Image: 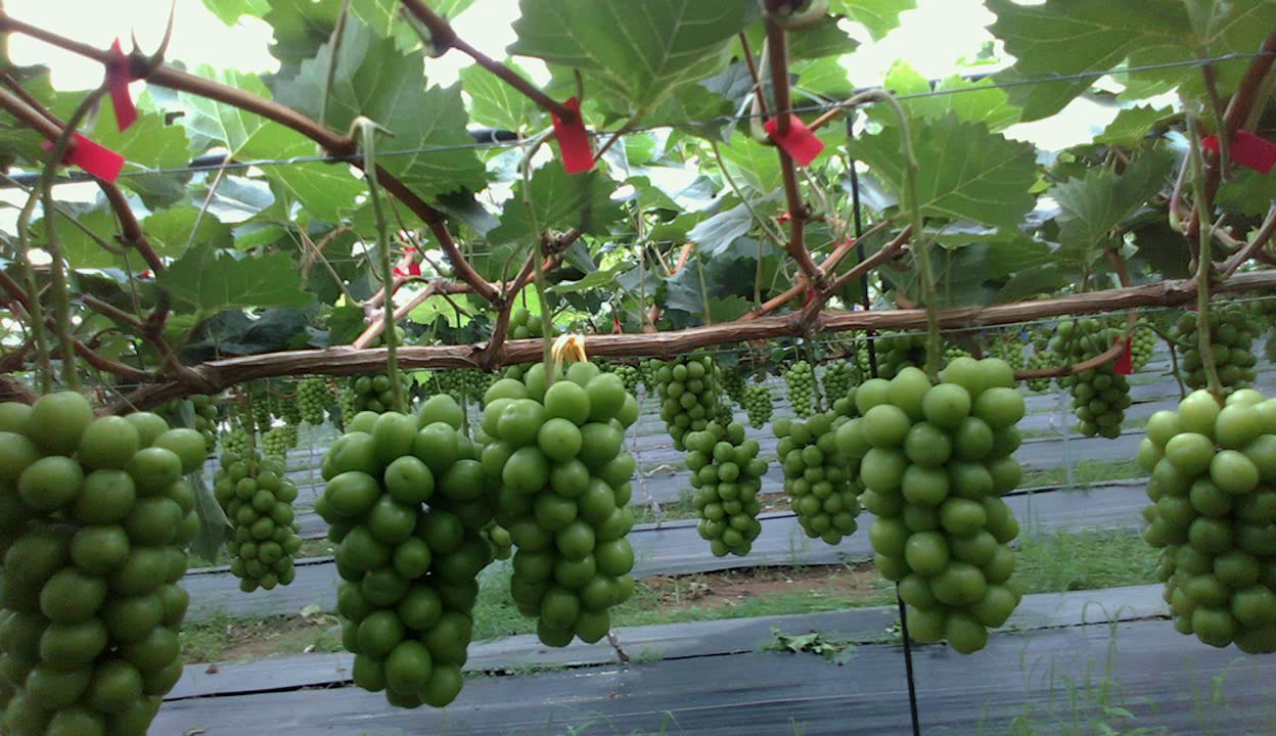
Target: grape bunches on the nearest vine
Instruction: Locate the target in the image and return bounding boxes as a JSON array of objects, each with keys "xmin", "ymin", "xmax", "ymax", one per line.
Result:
[
  {"xmin": 1, "ymin": 389, "xmax": 206, "ymax": 734},
  {"xmin": 313, "ymin": 393, "xmax": 495, "ymax": 708},
  {"xmin": 472, "ymin": 362, "xmax": 639, "ymax": 645},
  {"xmin": 836, "ymin": 357, "xmax": 1024, "ymax": 654},
  {"xmin": 1138, "ymin": 389, "xmax": 1273, "ymax": 652}
]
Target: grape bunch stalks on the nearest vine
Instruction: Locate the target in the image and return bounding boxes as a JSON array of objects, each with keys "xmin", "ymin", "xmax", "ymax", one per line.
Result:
[
  {"xmin": 845, "ymin": 88, "xmax": 942, "ymax": 382},
  {"xmin": 520, "ymin": 128, "xmax": 555, "ymax": 385},
  {"xmin": 346, "ymin": 118, "xmax": 407, "ymax": 413},
  {"xmin": 41, "ymin": 80, "xmax": 113, "ymax": 390},
  {"xmin": 16, "ymin": 178, "xmax": 49, "ymax": 395},
  {"xmin": 1187, "ymin": 111, "xmax": 1221, "ymax": 400}
]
